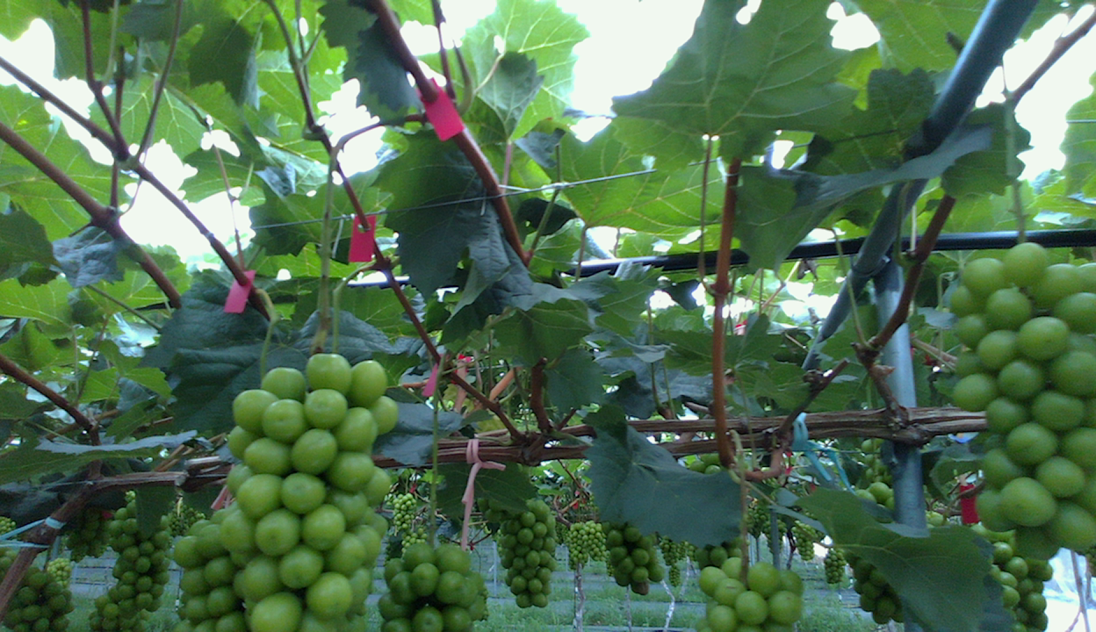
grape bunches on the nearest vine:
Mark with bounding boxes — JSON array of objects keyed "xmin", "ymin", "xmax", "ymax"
[
  {"xmin": 694, "ymin": 557, "xmax": 804, "ymax": 631},
  {"xmin": 220, "ymin": 354, "xmax": 400, "ymax": 631},
  {"xmin": 949, "ymin": 242, "xmax": 1095, "ymax": 560},
  {"xmin": 379, "ymin": 543, "xmax": 485, "ymax": 631}
]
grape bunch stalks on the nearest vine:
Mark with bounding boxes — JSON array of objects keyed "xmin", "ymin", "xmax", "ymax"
[
  {"xmin": 730, "ymin": 430, "xmax": 751, "ymax": 585},
  {"xmin": 429, "ymin": 350, "xmax": 449, "ymax": 547},
  {"xmin": 1003, "ymin": 104, "xmax": 1028, "ymax": 244},
  {"xmin": 310, "ymin": 122, "xmax": 381, "ymax": 357}
]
